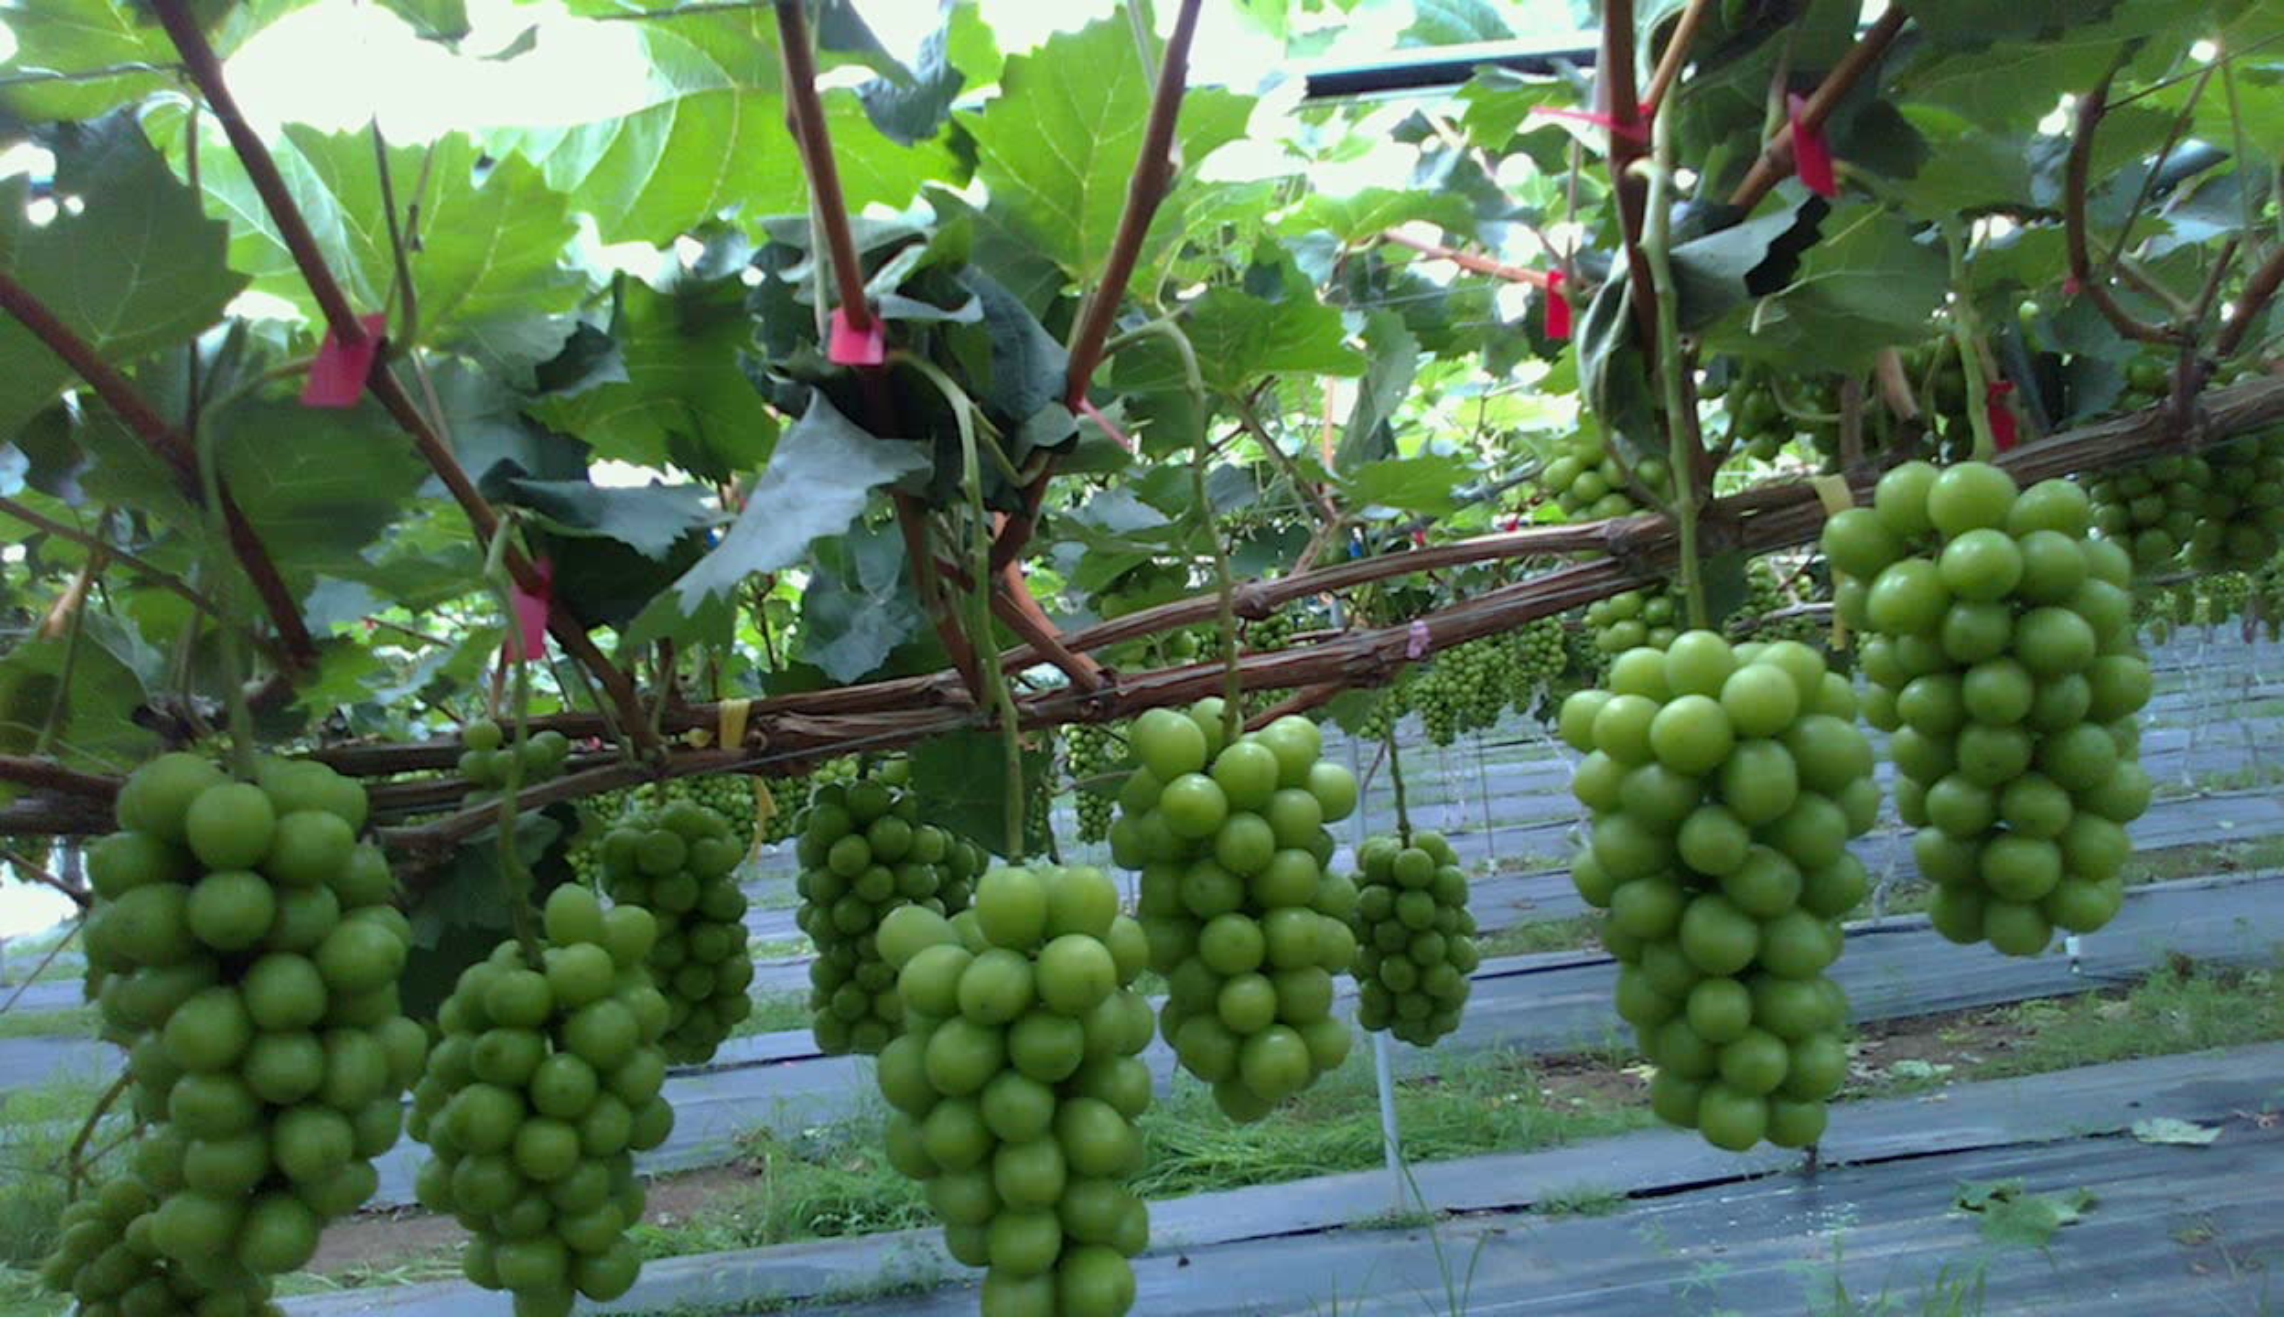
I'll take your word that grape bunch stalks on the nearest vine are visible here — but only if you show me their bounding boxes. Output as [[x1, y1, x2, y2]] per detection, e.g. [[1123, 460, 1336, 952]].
[[908, 351, 1023, 862], [196, 360, 296, 779], [1945, 232, 1995, 459], [489, 518, 540, 971], [1634, 159, 1700, 626], [1109, 304, 1239, 744]]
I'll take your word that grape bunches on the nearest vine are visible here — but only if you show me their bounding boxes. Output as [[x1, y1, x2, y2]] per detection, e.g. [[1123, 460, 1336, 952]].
[[82, 746, 428, 1295], [875, 863, 1158, 1315], [1817, 457, 2152, 957], [1109, 695, 1362, 1125], [410, 883, 675, 1315], [1563, 627, 1880, 1154]]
